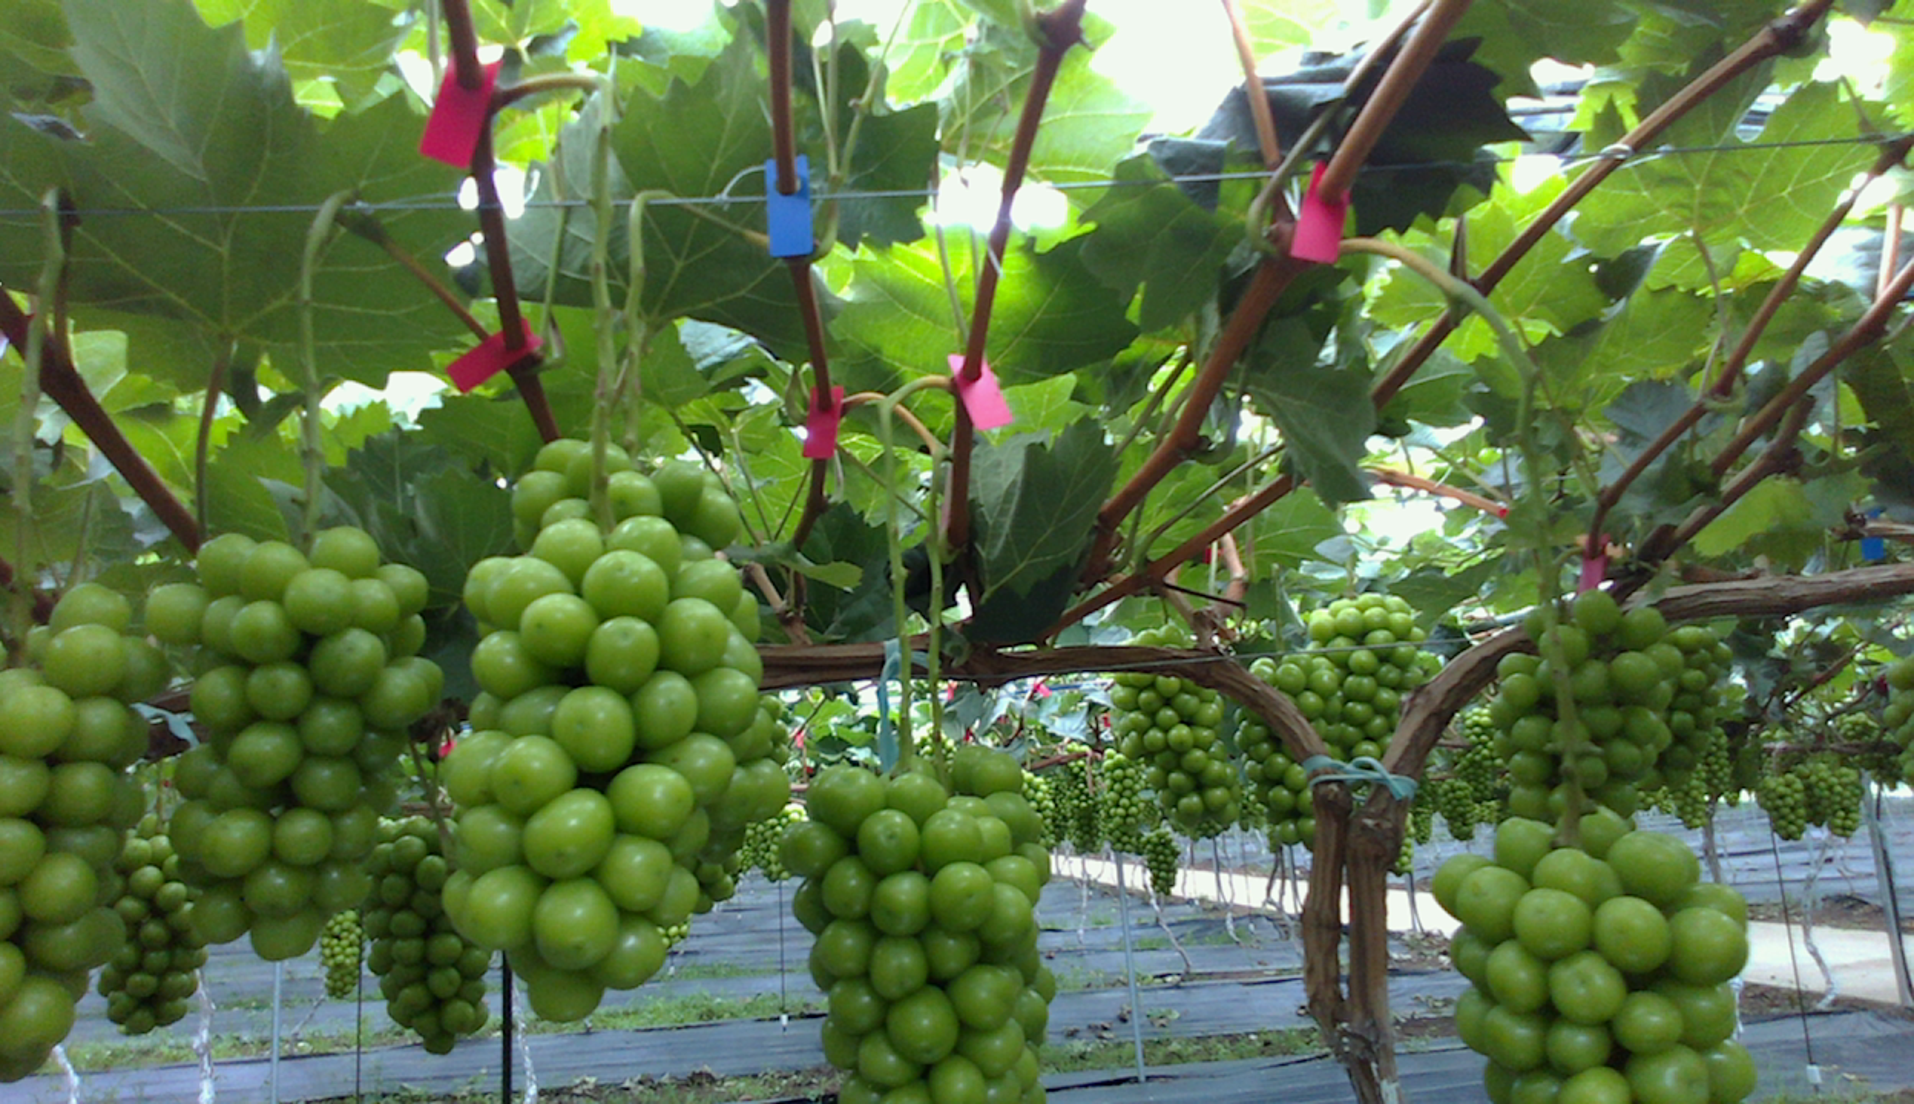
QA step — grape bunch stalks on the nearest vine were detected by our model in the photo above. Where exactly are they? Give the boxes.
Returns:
[483,74,618,532]
[882,376,954,768]
[288,186,359,549]
[1337,238,1583,851]
[8,179,66,664]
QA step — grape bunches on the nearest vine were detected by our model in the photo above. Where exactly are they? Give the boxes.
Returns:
[443,440,788,1021]
[2,586,169,1079]
[147,527,446,960]
[1434,810,1755,1101]
[778,744,1055,1099]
